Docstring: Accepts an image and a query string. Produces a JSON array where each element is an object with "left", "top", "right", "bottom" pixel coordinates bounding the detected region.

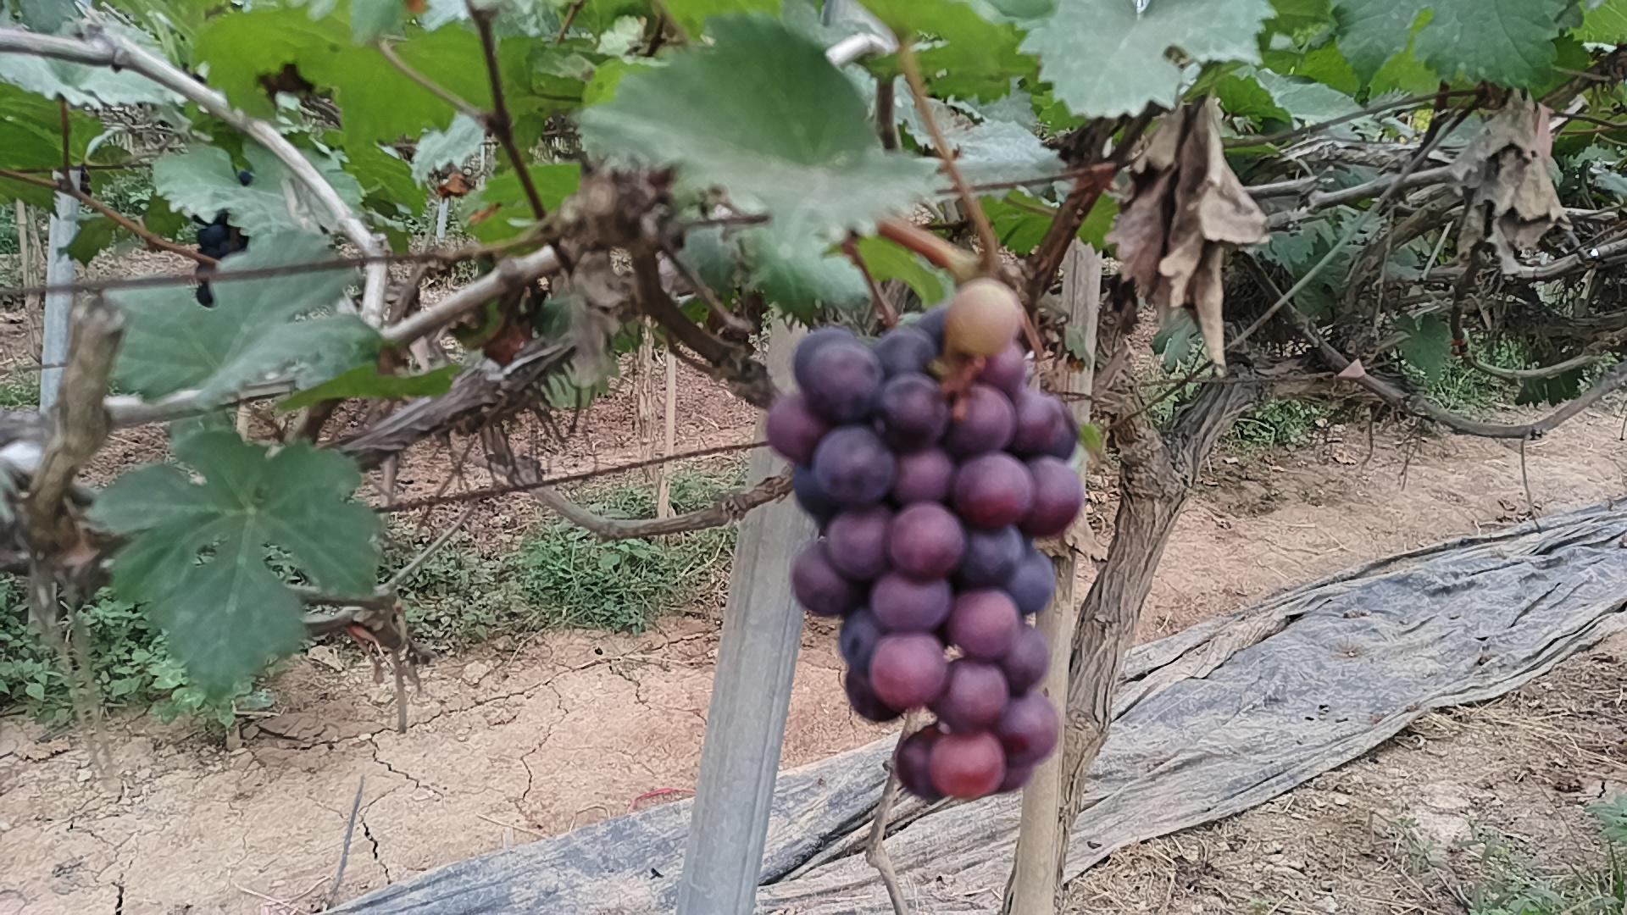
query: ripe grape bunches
[
  {"left": 195, "top": 210, "right": 247, "bottom": 307},
  {"left": 767, "top": 279, "right": 1079, "bottom": 801}
]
